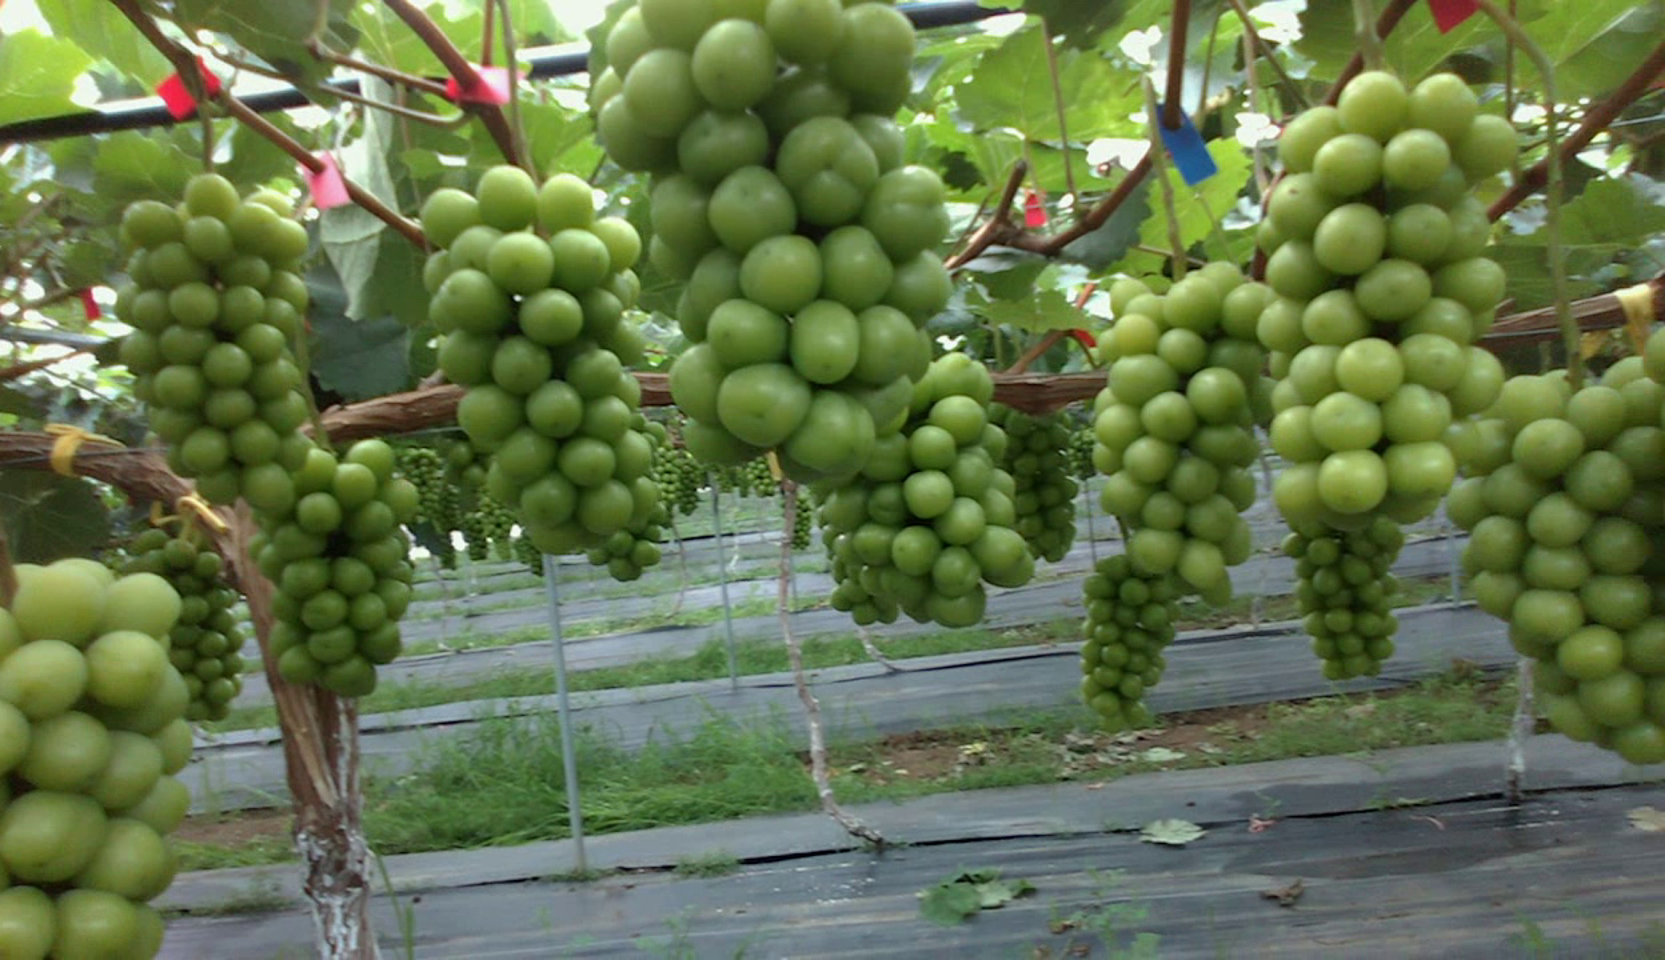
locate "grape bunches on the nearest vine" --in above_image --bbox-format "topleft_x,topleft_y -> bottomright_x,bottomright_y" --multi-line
592,0 -> 951,487
822,352 -> 1035,631
1446,357 -> 1664,767
247,439 -> 418,696
115,173 -> 312,513
420,165 -> 656,555
1253,73 -> 1516,528
0,556 -> 192,959
1091,257 -> 1267,588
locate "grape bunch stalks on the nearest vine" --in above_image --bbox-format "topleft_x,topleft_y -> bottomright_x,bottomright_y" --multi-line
1486,5 -> 1586,387
0,531 -> 17,604
296,325 -> 328,448
184,51 -> 213,169
1141,76 -> 1185,279
1353,0 -> 1386,68
496,0 -> 534,172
